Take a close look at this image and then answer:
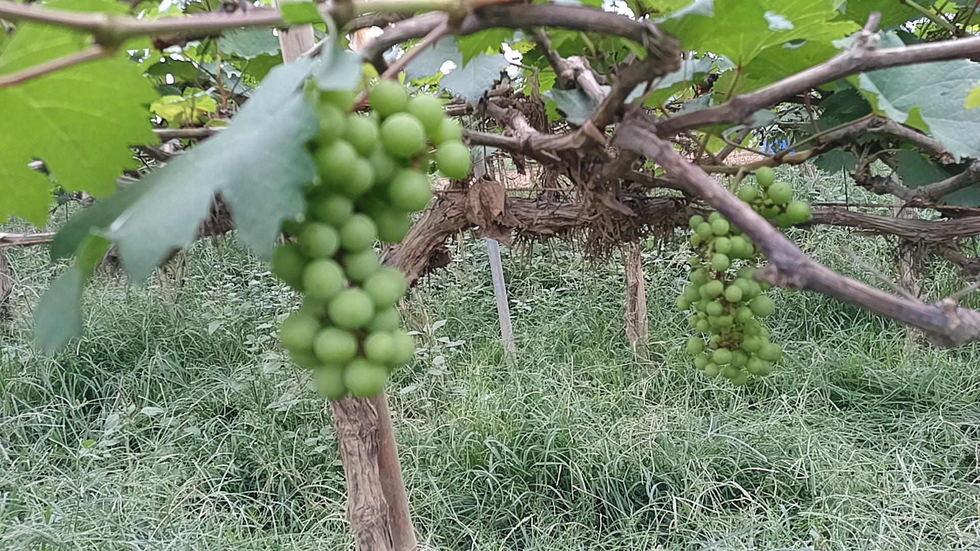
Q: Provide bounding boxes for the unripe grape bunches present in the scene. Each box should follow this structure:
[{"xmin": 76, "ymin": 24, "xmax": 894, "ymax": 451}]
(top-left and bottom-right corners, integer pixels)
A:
[
  {"xmin": 677, "ymin": 166, "xmax": 811, "ymax": 385},
  {"xmin": 272, "ymin": 77, "xmax": 472, "ymax": 399}
]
